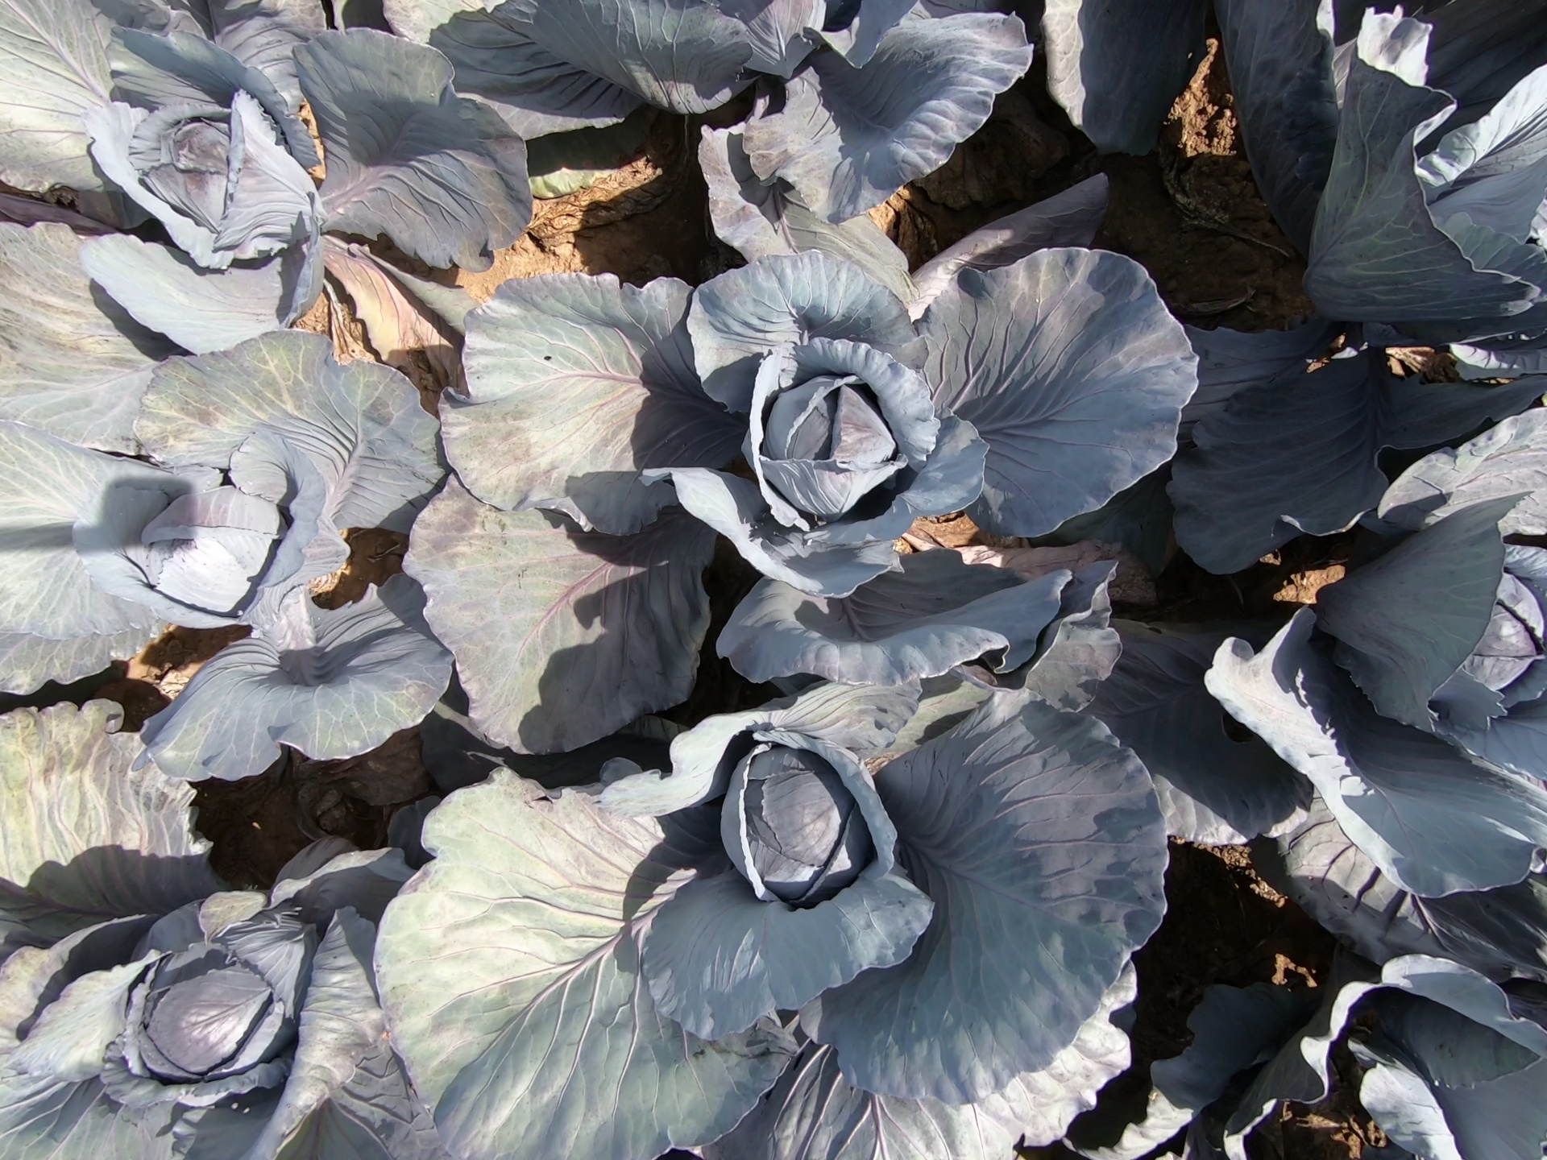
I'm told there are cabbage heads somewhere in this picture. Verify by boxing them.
[766,379,888,506]
[1410,565,1539,698]
[724,744,879,901]
[135,911,311,1086]
[146,487,292,620]
[168,121,284,237]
